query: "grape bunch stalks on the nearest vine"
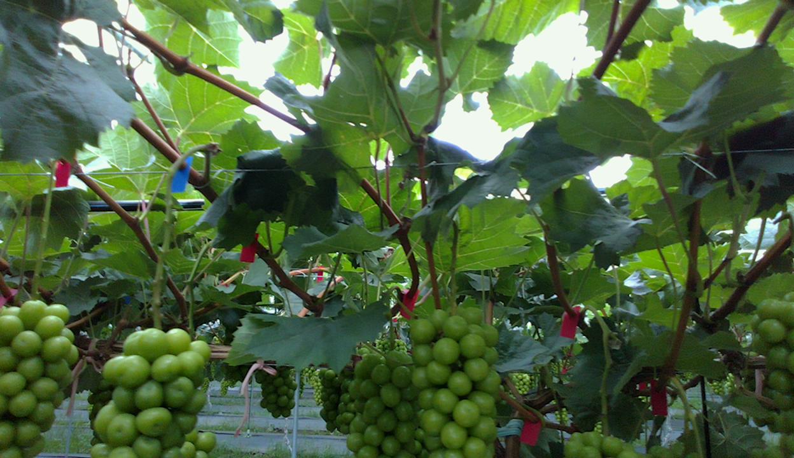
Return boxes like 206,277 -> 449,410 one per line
151,142 -> 218,330
32,162 -> 58,299
384,284 -> 398,348
588,305 -> 611,437
449,220 -> 459,314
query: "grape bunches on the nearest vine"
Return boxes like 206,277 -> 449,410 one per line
751,291 -> 793,456
91,327 -> 216,457
564,433 -> 638,457
0,301 -> 79,457
347,350 -> 430,457
411,306 -> 501,457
